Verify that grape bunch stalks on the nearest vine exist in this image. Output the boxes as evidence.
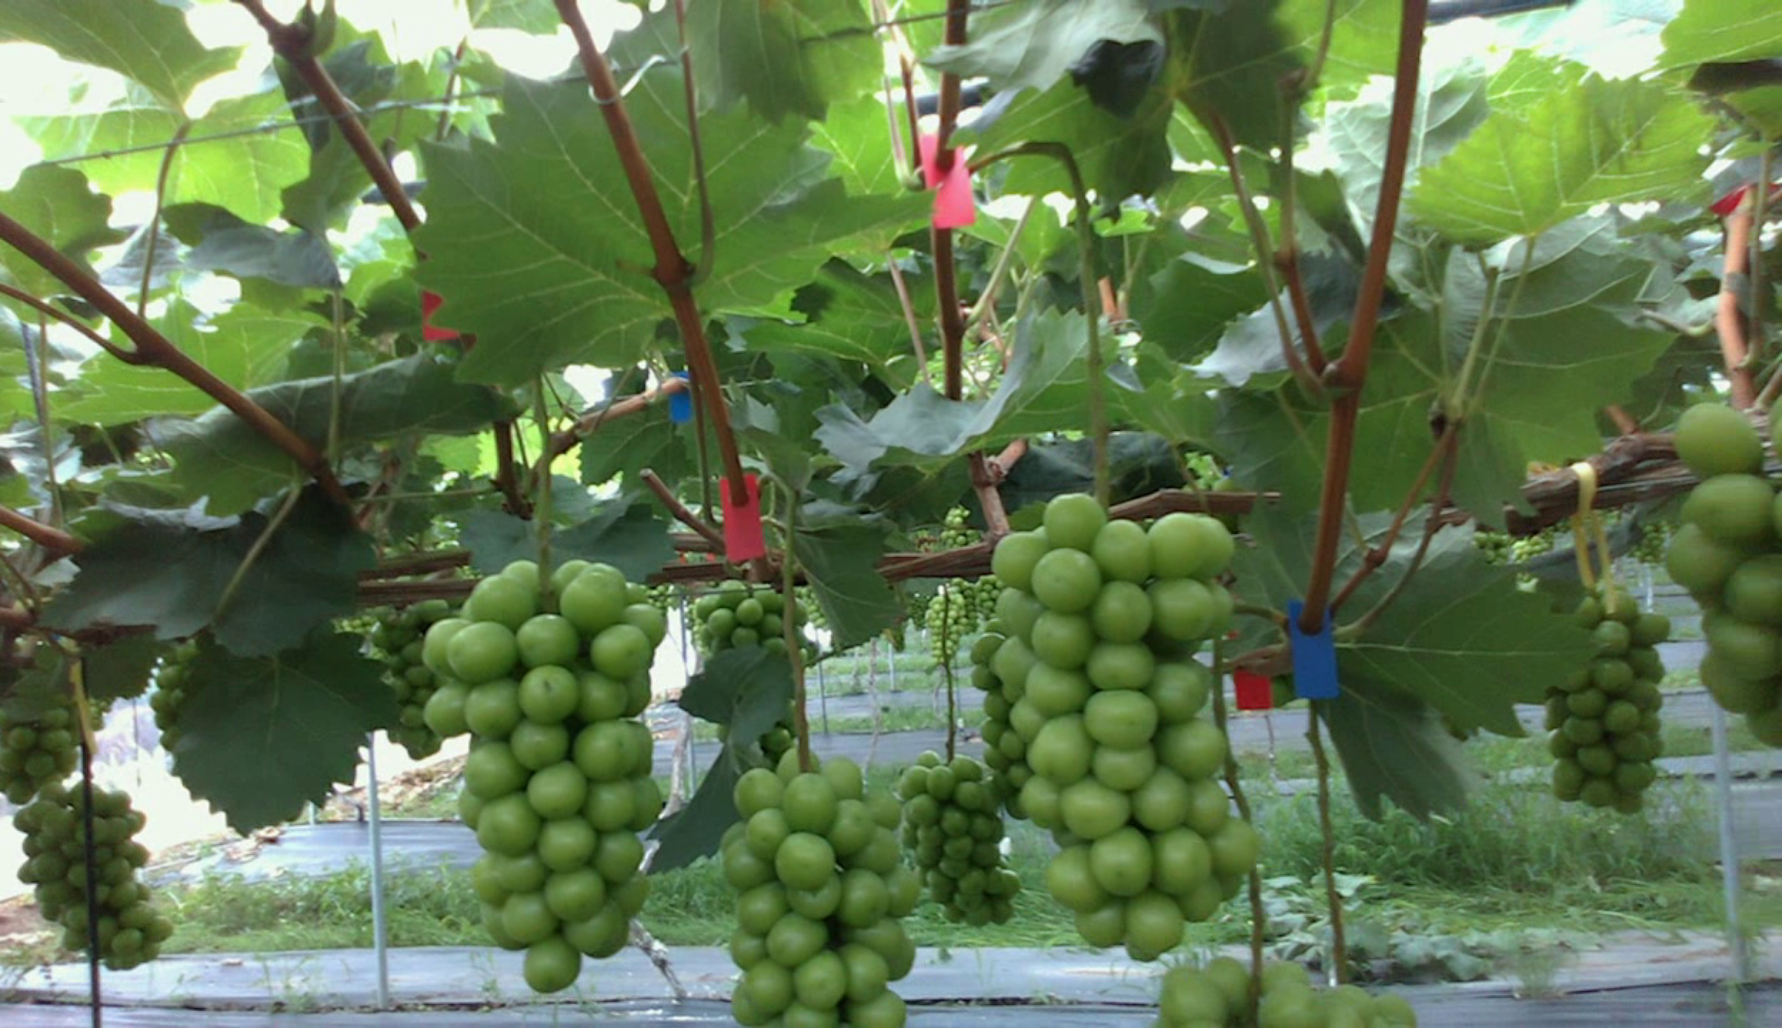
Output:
[761,471,810,770]
[1248,870,1267,1019]
[984,138,1111,504]
[527,378,555,608]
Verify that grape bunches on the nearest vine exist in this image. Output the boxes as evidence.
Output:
[426,558,667,992]
[724,755,915,1027]
[1151,955,1416,1027]
[991,491,1261,964]
[1663,403,1779,745]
